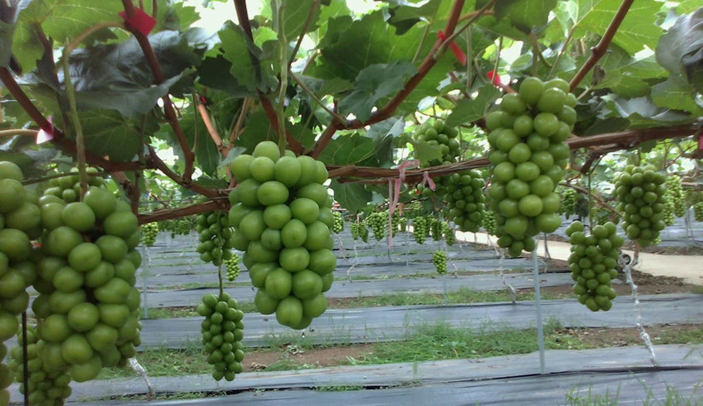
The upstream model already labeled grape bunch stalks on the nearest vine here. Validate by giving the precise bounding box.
[530,32,538,77]
[61,22,128,202]
[277,5,288,157]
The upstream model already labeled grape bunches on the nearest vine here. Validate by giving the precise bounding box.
[32,188,143,383]
[487,76,577,258]
[0,161,43,342]
[228,140,337,330]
